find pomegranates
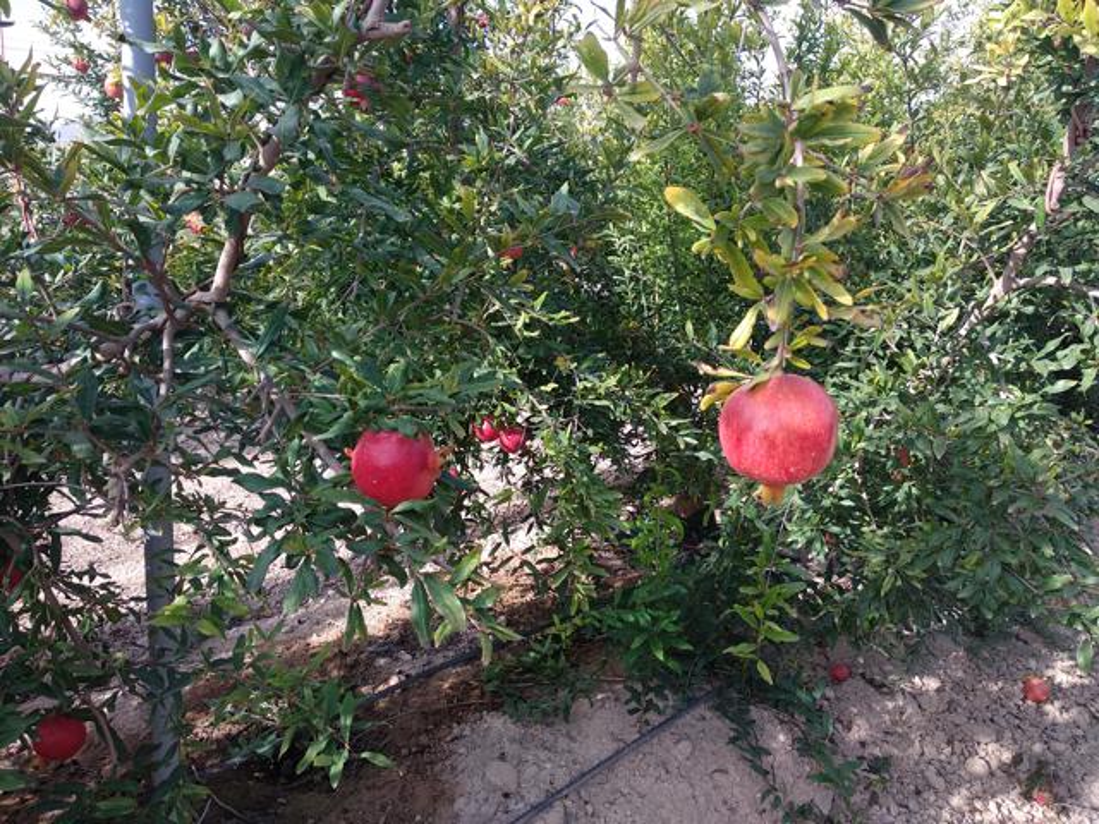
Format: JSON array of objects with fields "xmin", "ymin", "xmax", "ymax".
[
  {"xmin": 64, "ymin": 0, "xmax": 89, "ymax": 22},
  {"xmin": 343, "ymin": 74, "xmax": 381, "ymax": 113},
  {"xmin": 474, "ymin": 415, "xmax": 500, "ymax": 443},
  {"xmin": 153, "ymin": 53, "xmax": 173, "ymax": 65},
  {"xmin": 350, "ymin": 429, "xmax": 440, "ymax": 508},
  {"xmin": 103, "ymin": 77, "xmax": 124, "ymax": 101},
  {"xmin": 716, "ymin": 374, "xmax": 840, "ymax": 506},
  {"xmin": 498, "ymin": 429, "xmax": 527, "ymax": 453},
  {"xmin": 0, "ymin": 560, "xmax": 24, "ymax": 594},
  {"xmin": 500, "ymin": 247, "xmax": 524, "ymax": 259},
  {"xmin": 72, "ymin": 57, "xmax": 91, "ymax": 74},
  {"xmin": 33, "ymin": 714, "xmax": 86, "ymax": 760}
]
